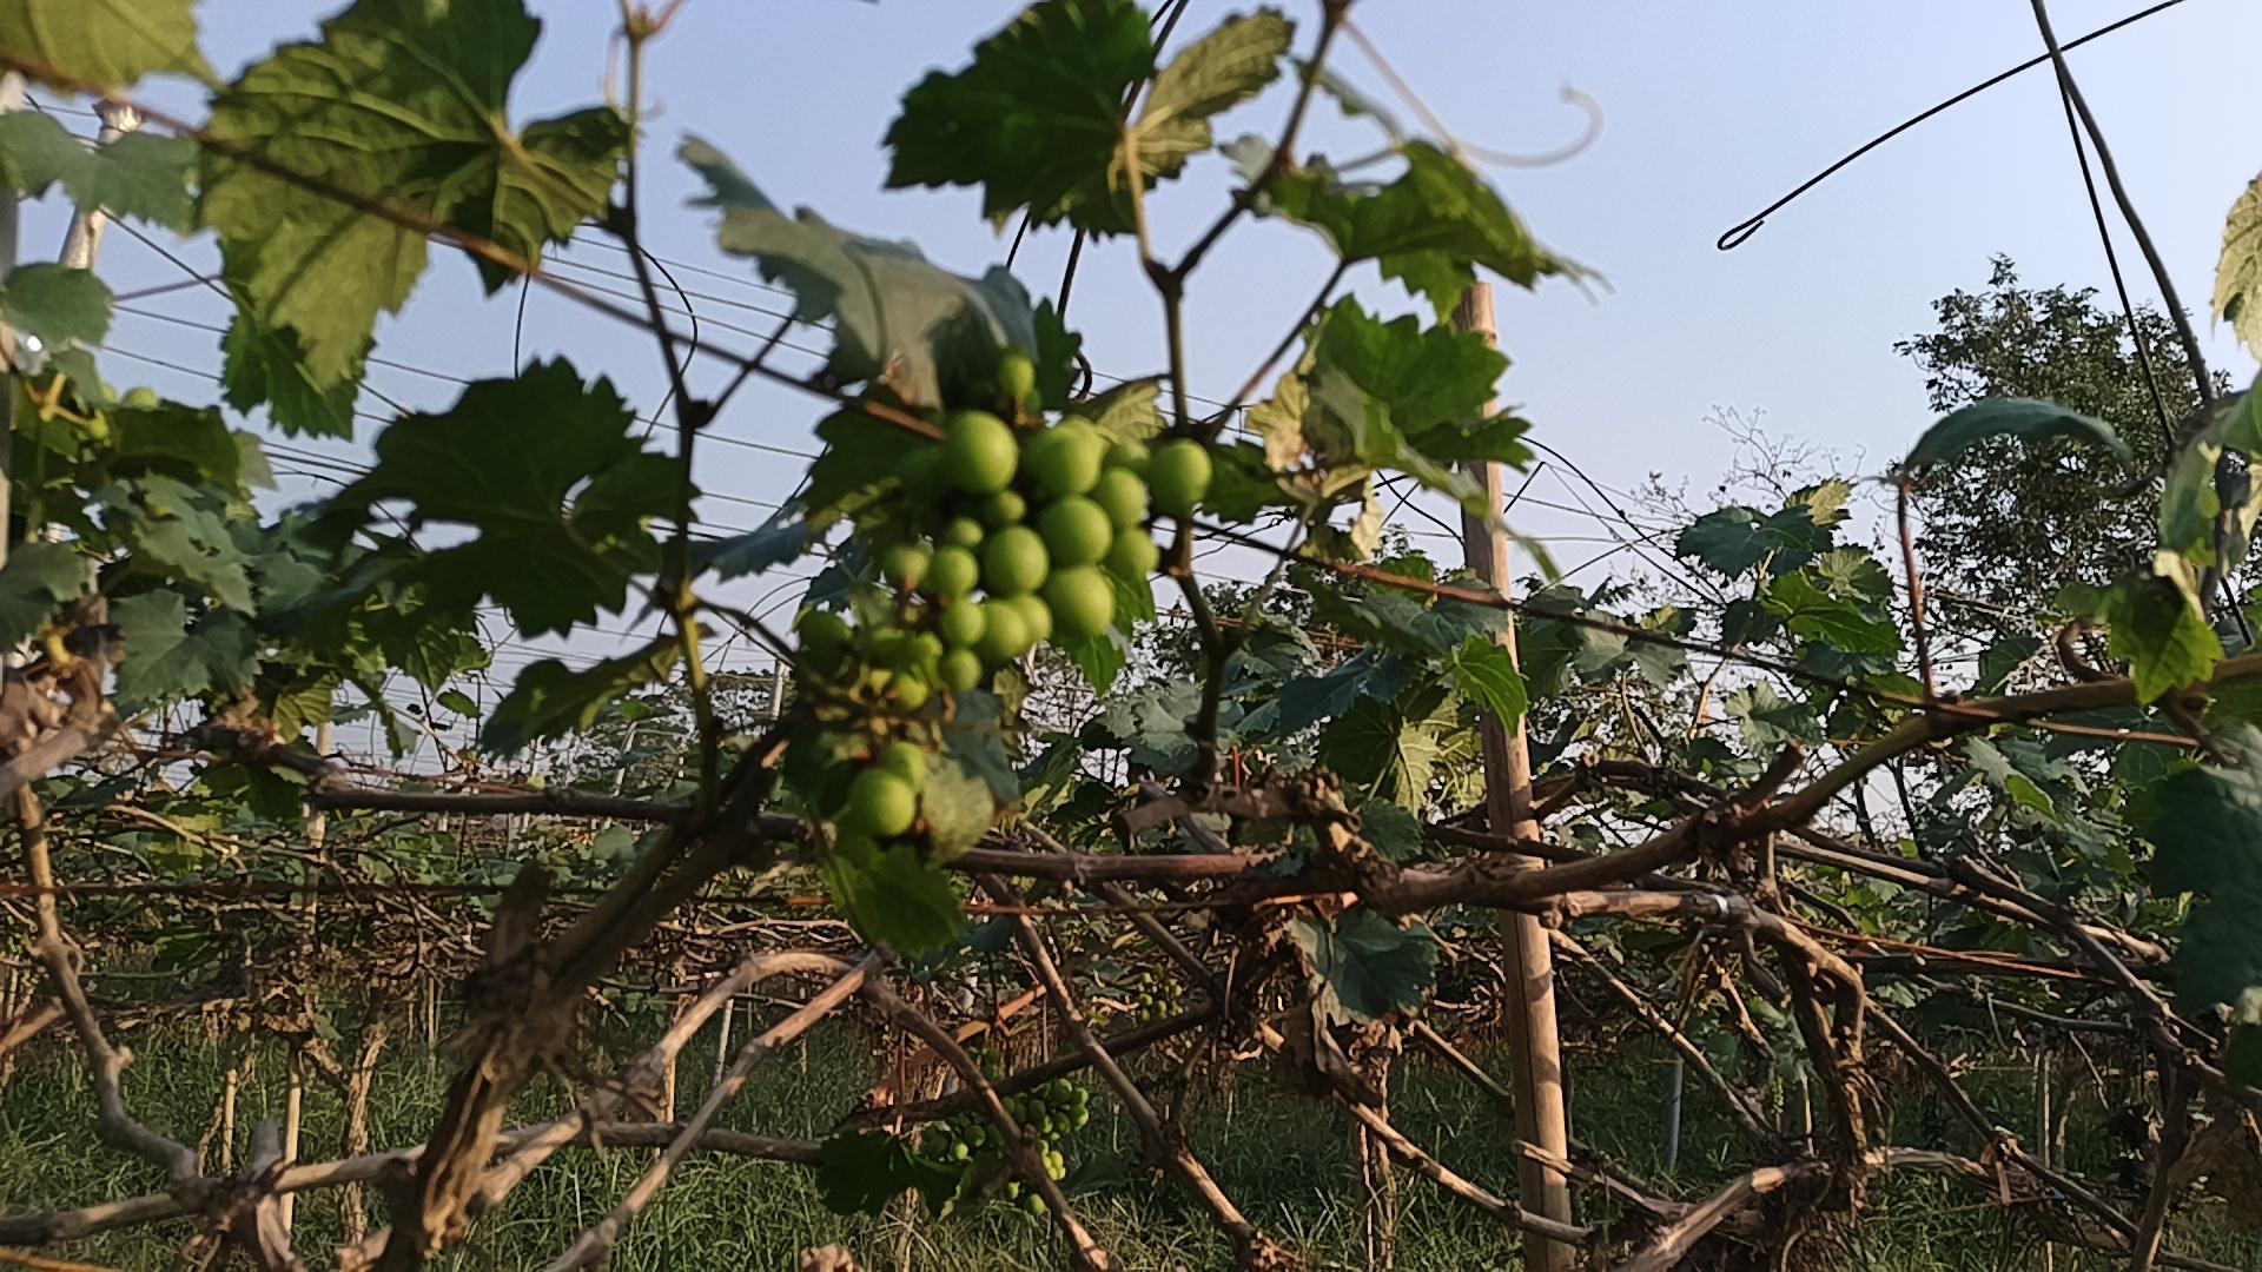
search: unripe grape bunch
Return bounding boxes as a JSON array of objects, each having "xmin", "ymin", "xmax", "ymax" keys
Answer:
[{"xmin": 781, "ymin": 355, "xmax": 1211, "ymax": 839}]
